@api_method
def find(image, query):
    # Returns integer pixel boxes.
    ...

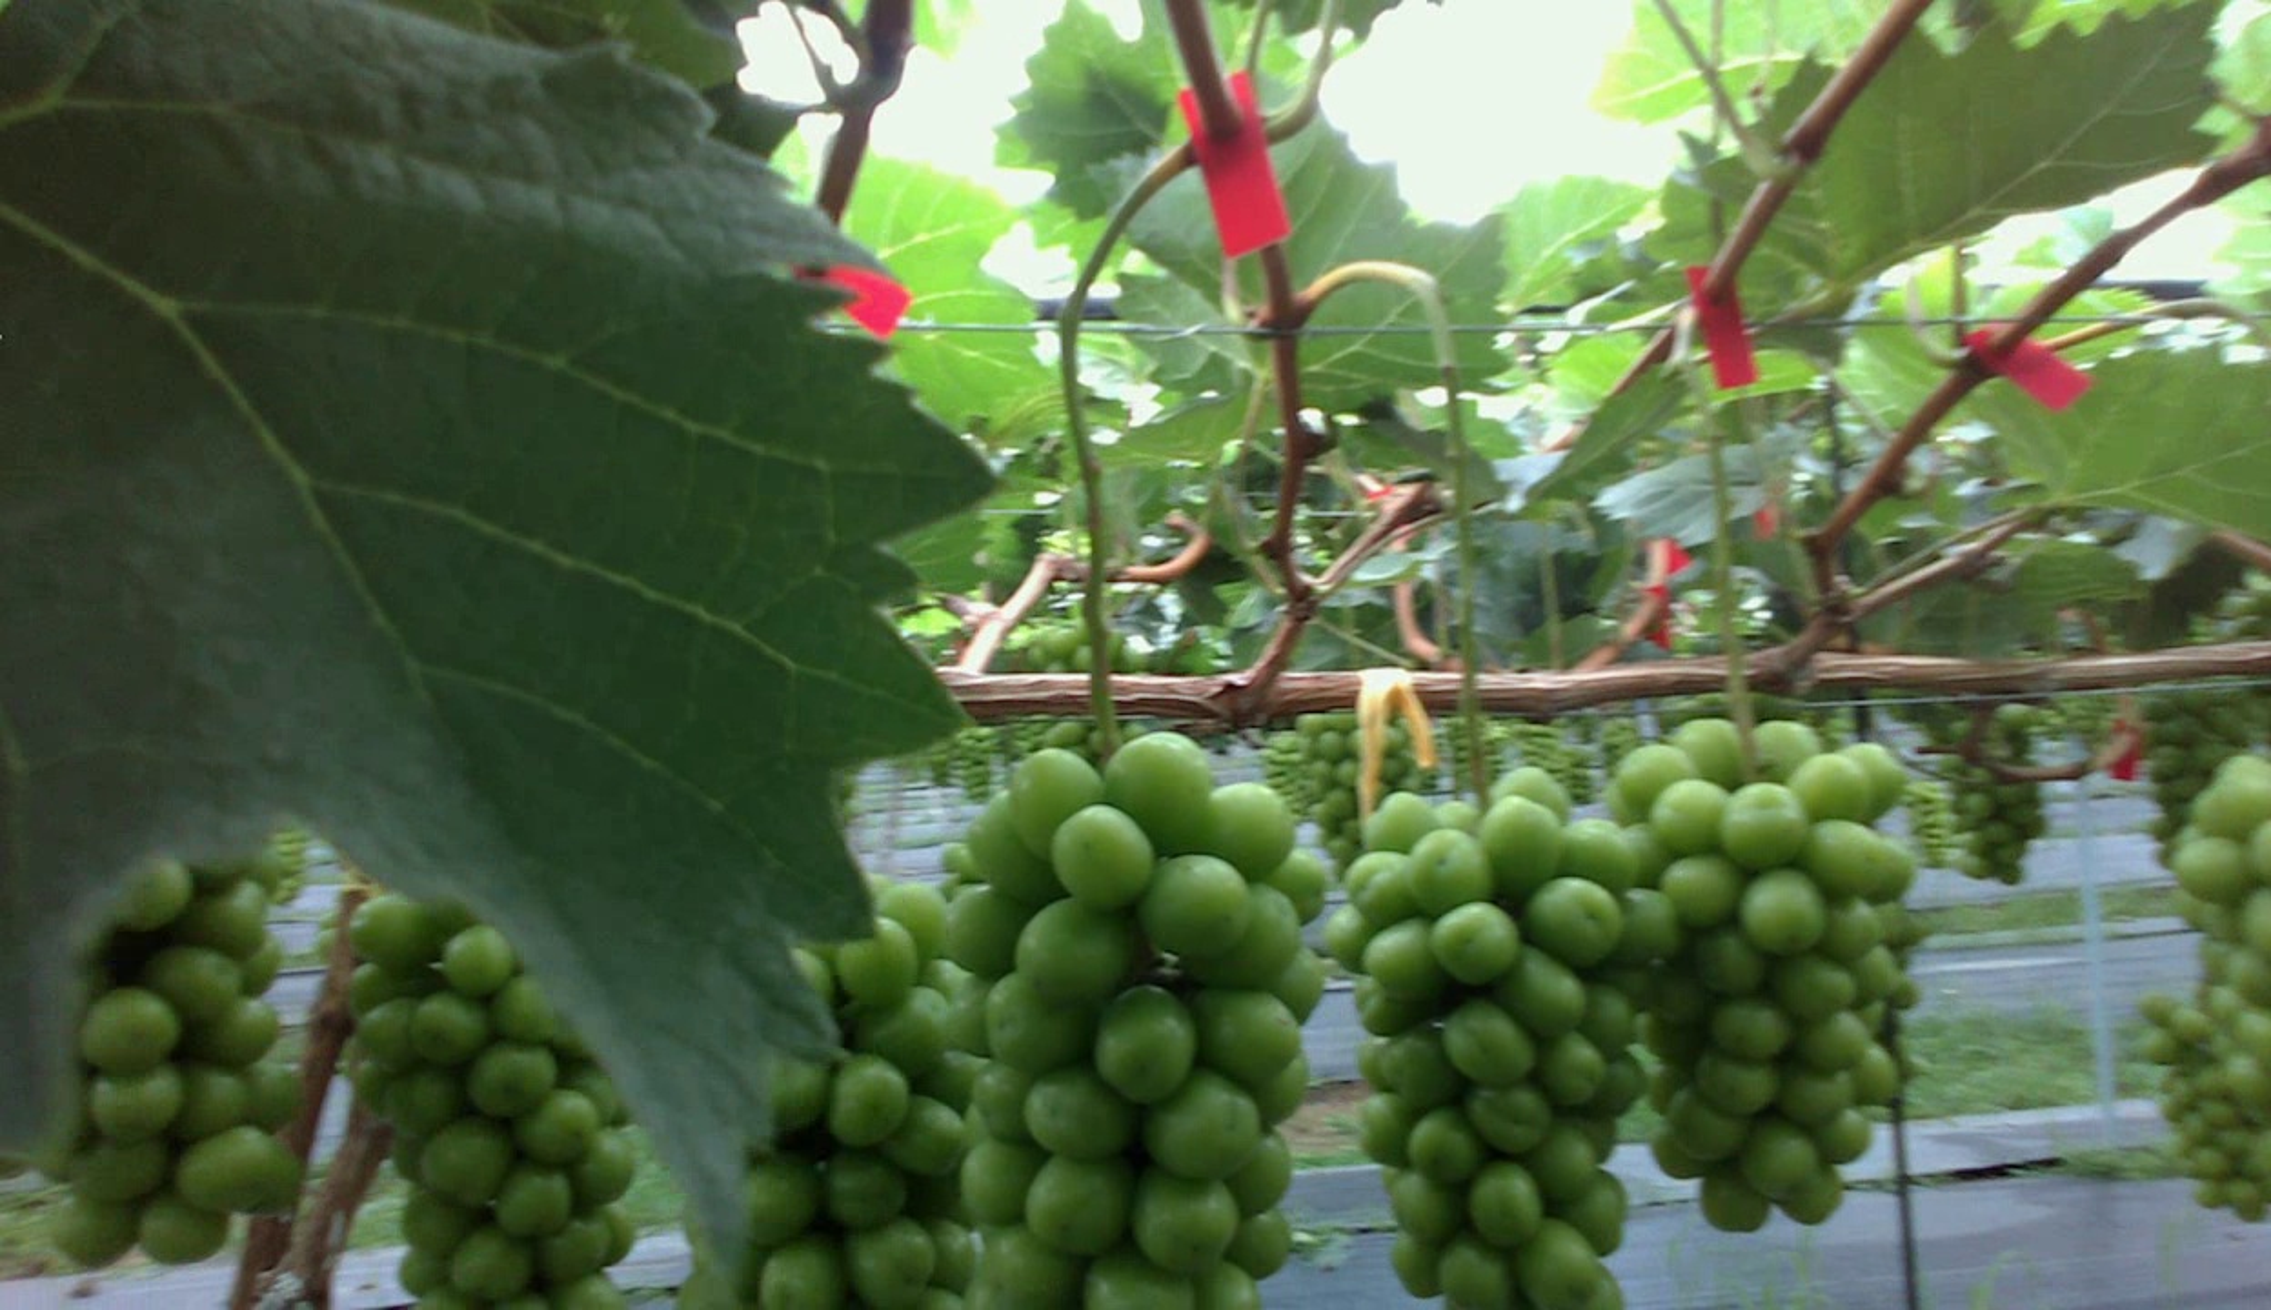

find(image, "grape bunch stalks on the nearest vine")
[1674,306,1760,781]
[1059,144,1197,761]
[1288,260,1490,808]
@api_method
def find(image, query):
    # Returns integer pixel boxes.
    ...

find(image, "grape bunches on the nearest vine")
[348,890,637,1306]
[675,875,997,1308]
[35,830,302,1265]
[1614,715,1918,1226]
[946,735,1327,1308]
[1323,766,1680,1308]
